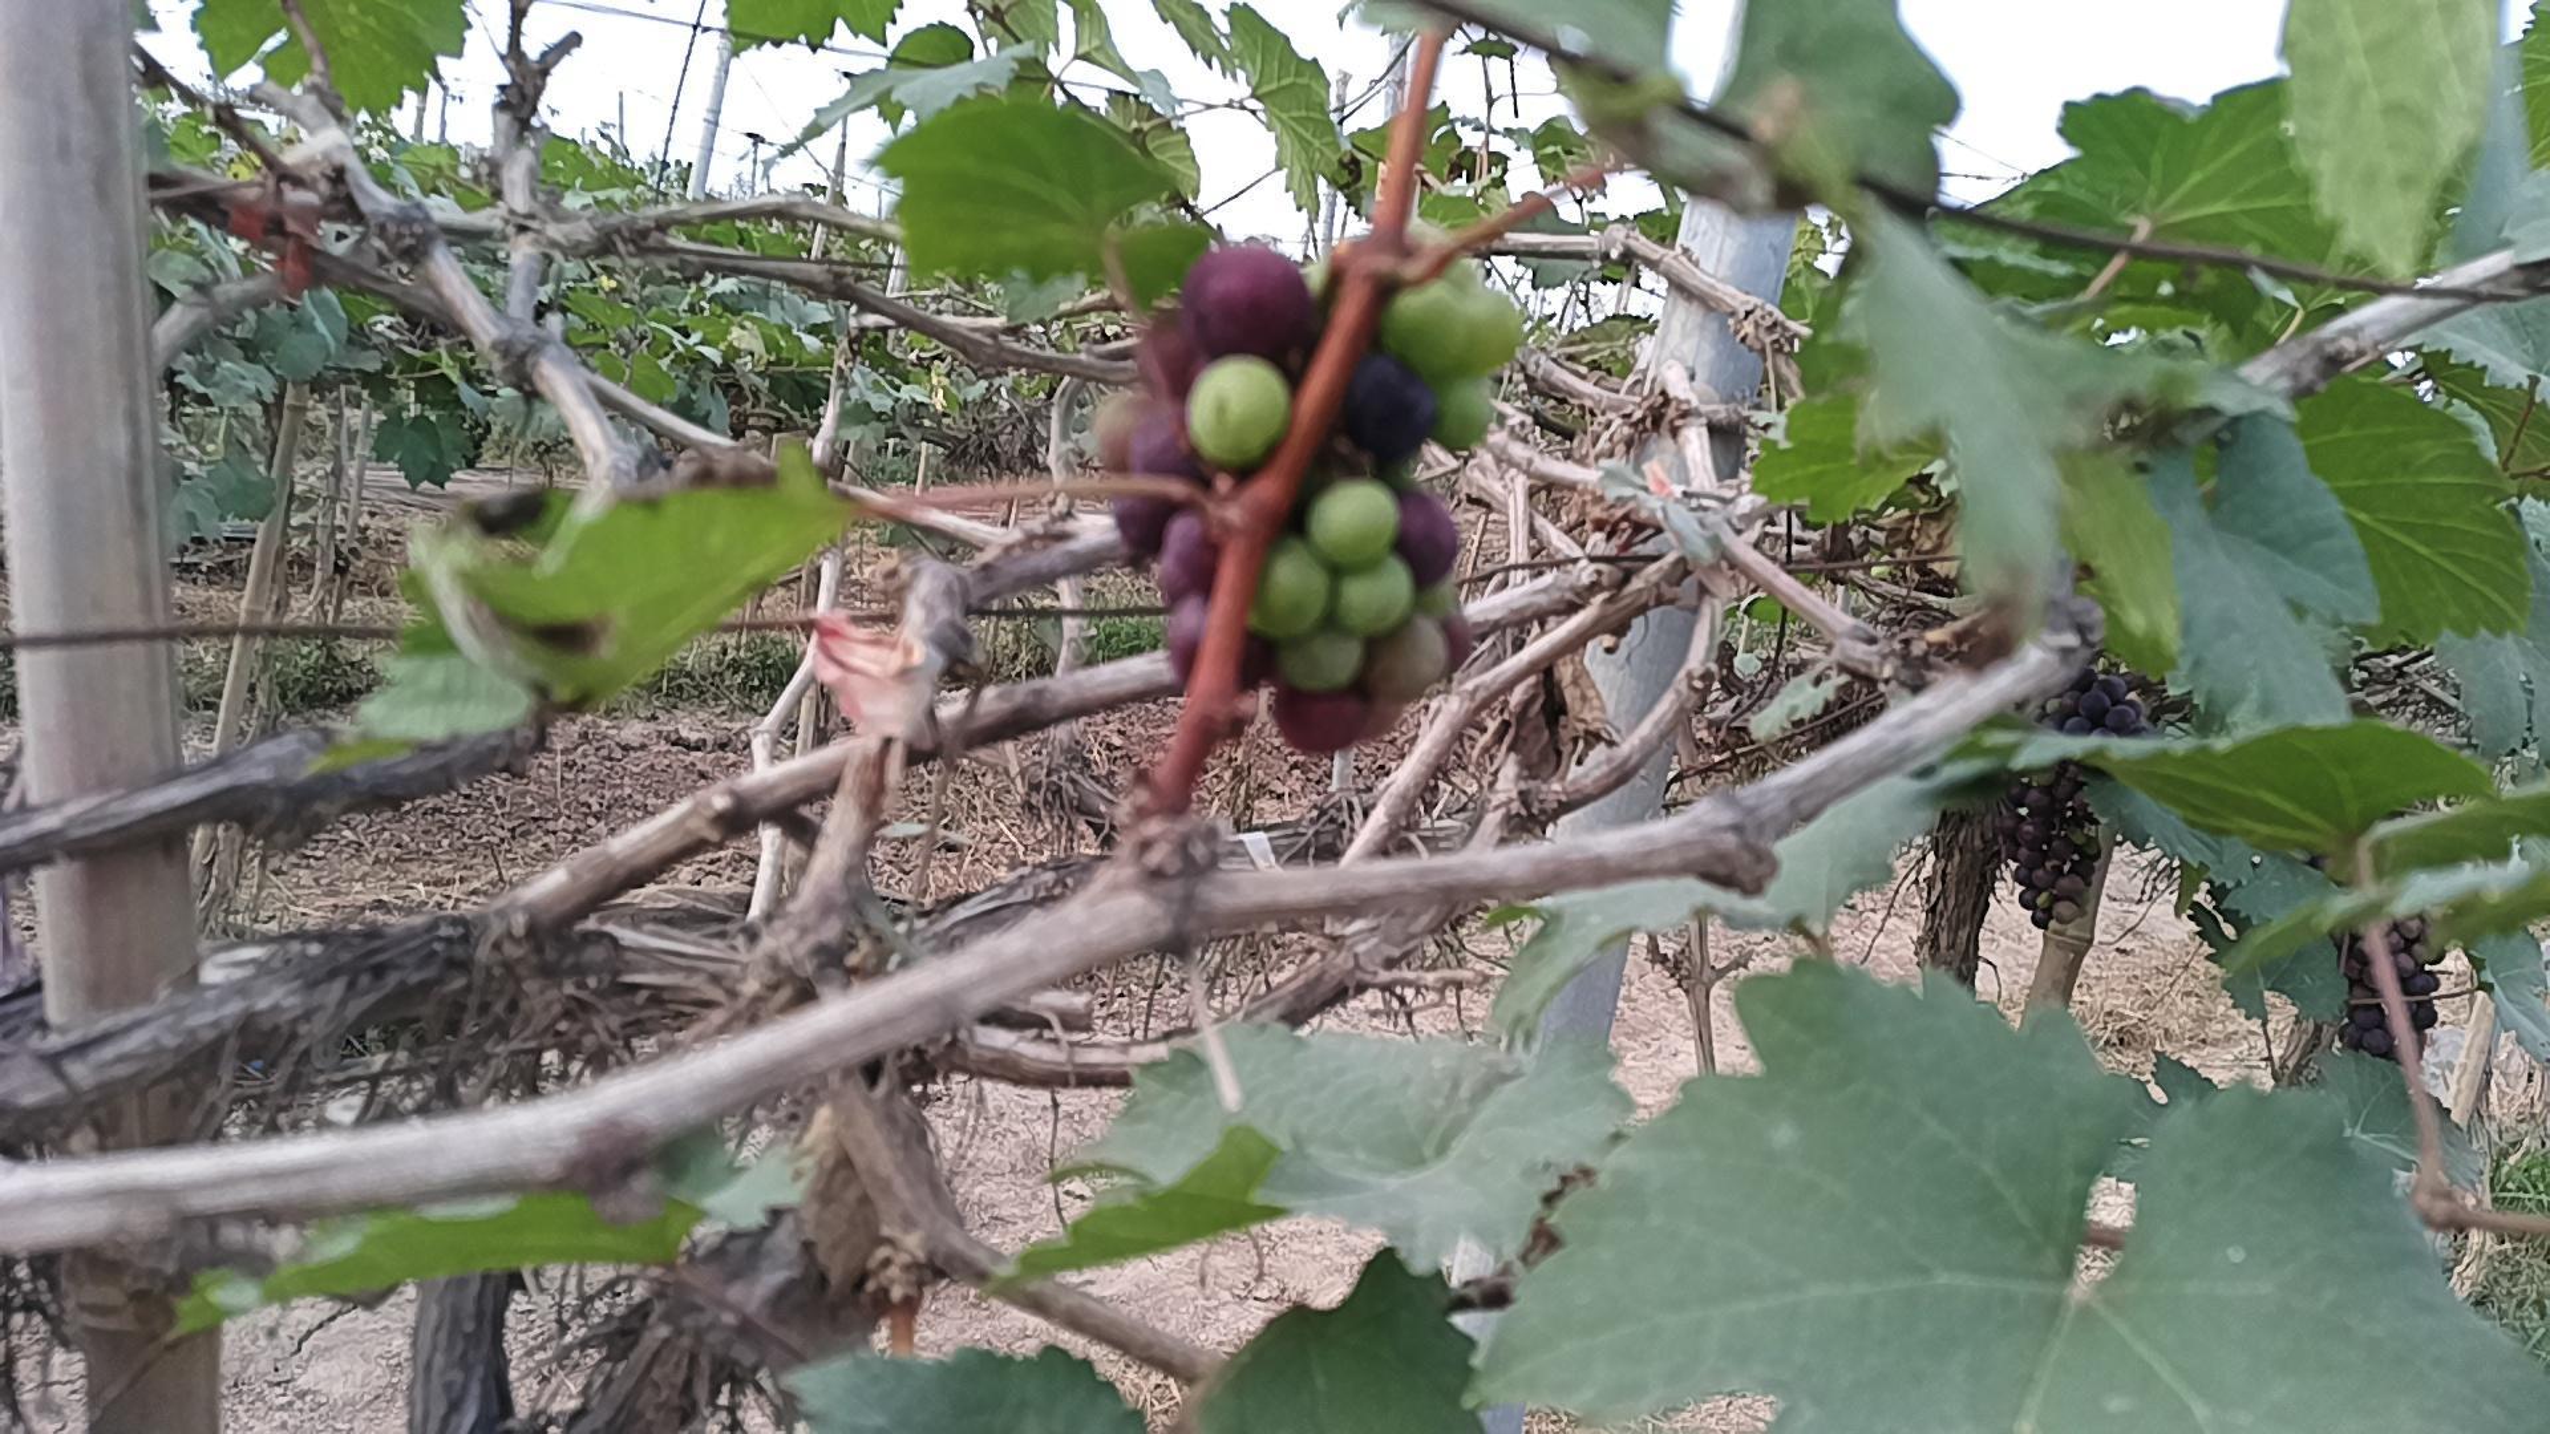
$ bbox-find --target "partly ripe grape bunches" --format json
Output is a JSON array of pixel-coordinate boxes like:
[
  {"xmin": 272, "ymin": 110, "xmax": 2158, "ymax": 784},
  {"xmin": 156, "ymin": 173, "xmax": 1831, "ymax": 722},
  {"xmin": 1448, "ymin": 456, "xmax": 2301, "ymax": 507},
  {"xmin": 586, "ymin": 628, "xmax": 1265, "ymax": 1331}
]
[
  {"xmin": 2003, "ymin": 668, "xmax": 2152, "ymax": 928},
  {"xmin": 1104, "ymin": 231, "xmax": 1518, "ymax": 752}
]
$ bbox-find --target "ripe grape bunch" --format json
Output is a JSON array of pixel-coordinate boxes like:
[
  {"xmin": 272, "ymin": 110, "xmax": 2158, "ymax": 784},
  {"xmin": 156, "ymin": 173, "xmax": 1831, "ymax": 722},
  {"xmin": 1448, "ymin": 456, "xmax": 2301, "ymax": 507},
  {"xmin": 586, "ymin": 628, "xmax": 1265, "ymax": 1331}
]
[{"xmin": 2337, "ymin": 919, "xmax": 2440, "ymax": 1061}]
